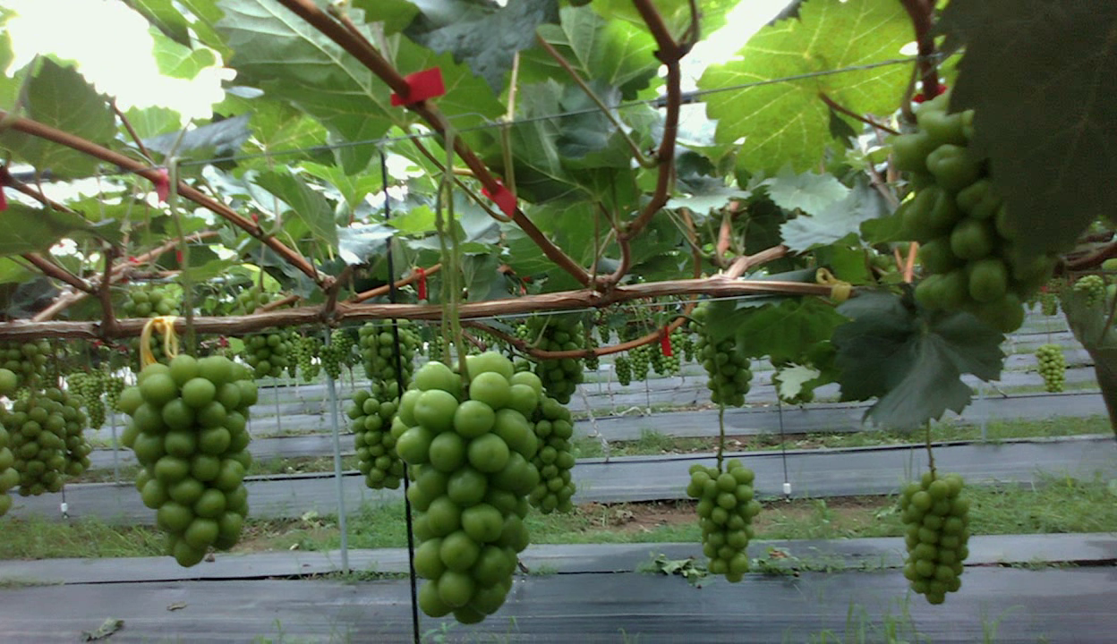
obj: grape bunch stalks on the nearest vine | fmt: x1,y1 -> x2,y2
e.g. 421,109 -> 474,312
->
167,157 -> 196,358
445,132 -> 472,397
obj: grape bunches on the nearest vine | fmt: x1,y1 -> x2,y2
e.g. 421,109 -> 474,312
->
397,351 -> 544,623
889,89 -> 1052,335
121,355 -> 259,570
